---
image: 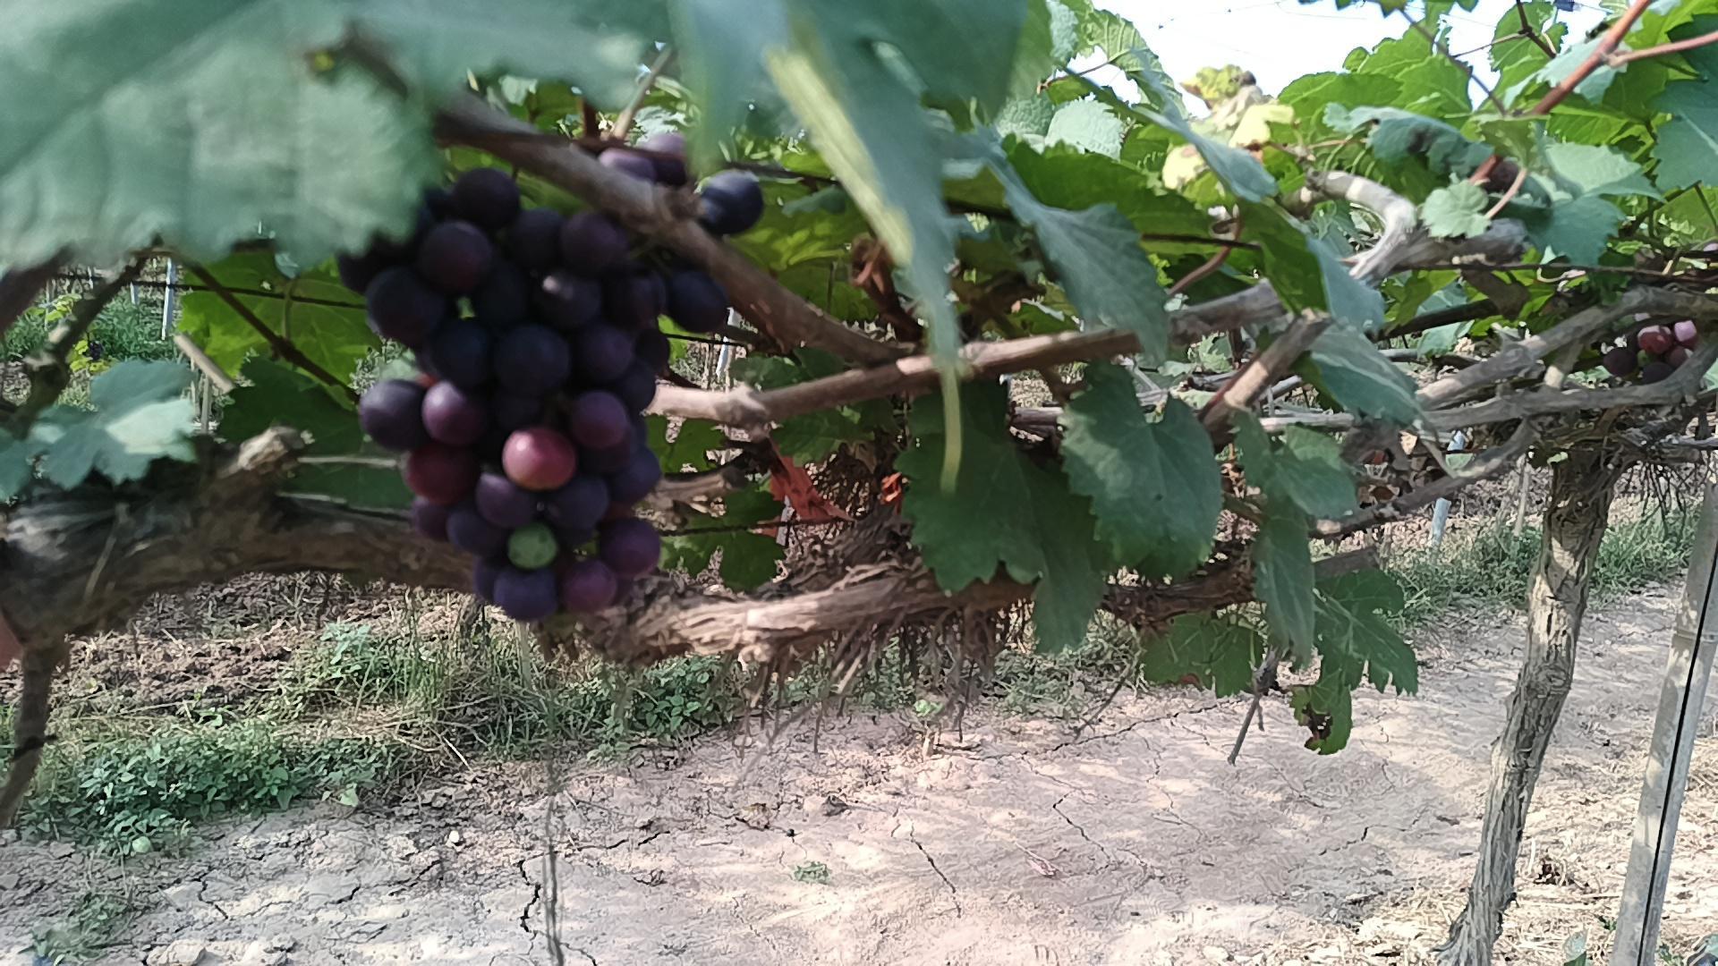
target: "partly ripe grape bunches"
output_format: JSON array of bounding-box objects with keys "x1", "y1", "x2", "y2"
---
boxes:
[
  {"x1": 337, "y1": 131, "x2": 764, "y2": 621},
  {"x1": 1603, "y1": 321, "x2": 1698, "y2": 383}
]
